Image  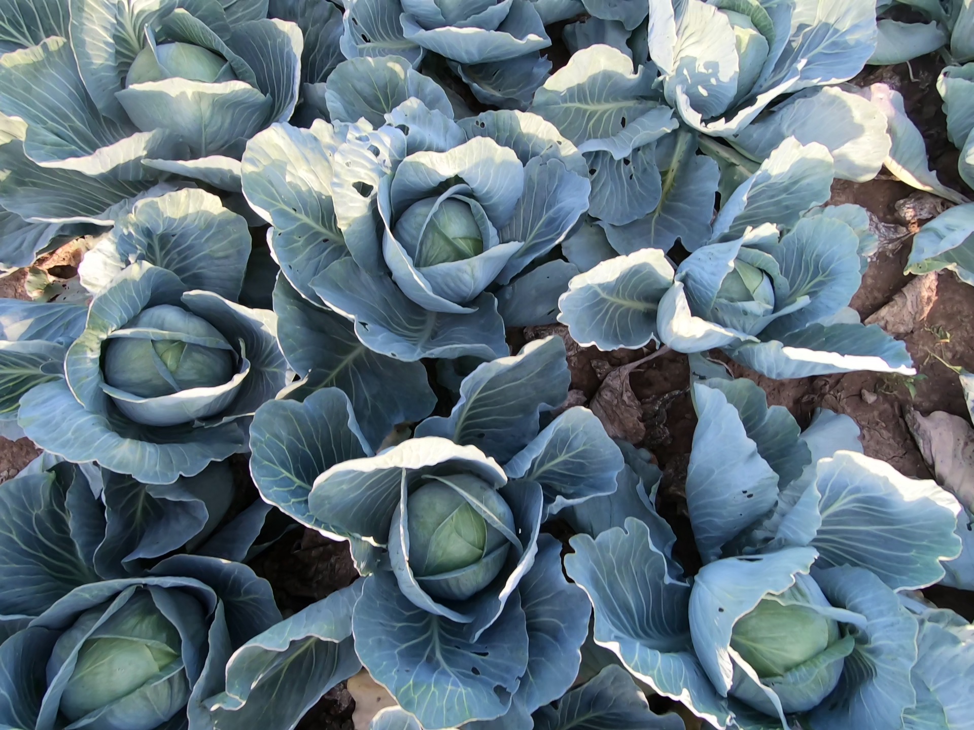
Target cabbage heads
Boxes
[396,475,510,596]
[701,255,774,333]
[48,588,201,730]
[395,196,494,294]
[703,565,840,711]
[125,44,237,144]
[405,2,499,31]
[686,7,765,107]
[103,308,229,422]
